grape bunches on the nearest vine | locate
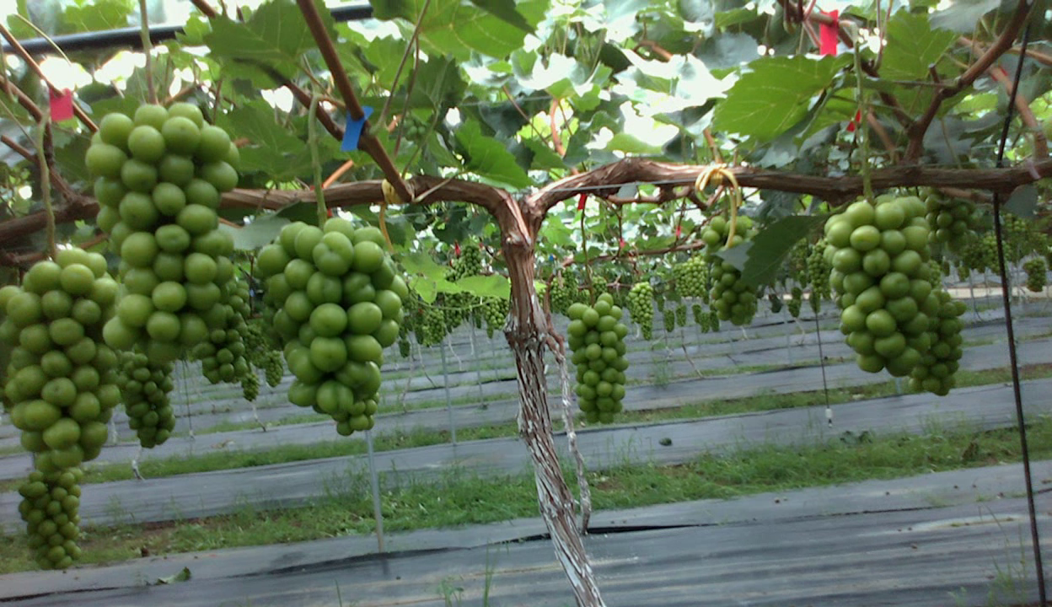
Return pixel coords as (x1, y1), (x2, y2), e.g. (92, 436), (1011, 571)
(824, 195), (937, 377)
(255, 218), (408, 416)
(0, 247), (121, 474)
(84, 104), (239, 364)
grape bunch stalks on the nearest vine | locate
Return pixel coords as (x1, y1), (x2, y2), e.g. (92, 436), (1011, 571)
(138, 0), (158, 101)
(37, 109), (56, 256)
(307, 94), (339, 226)
(842, 19), (875, 201)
